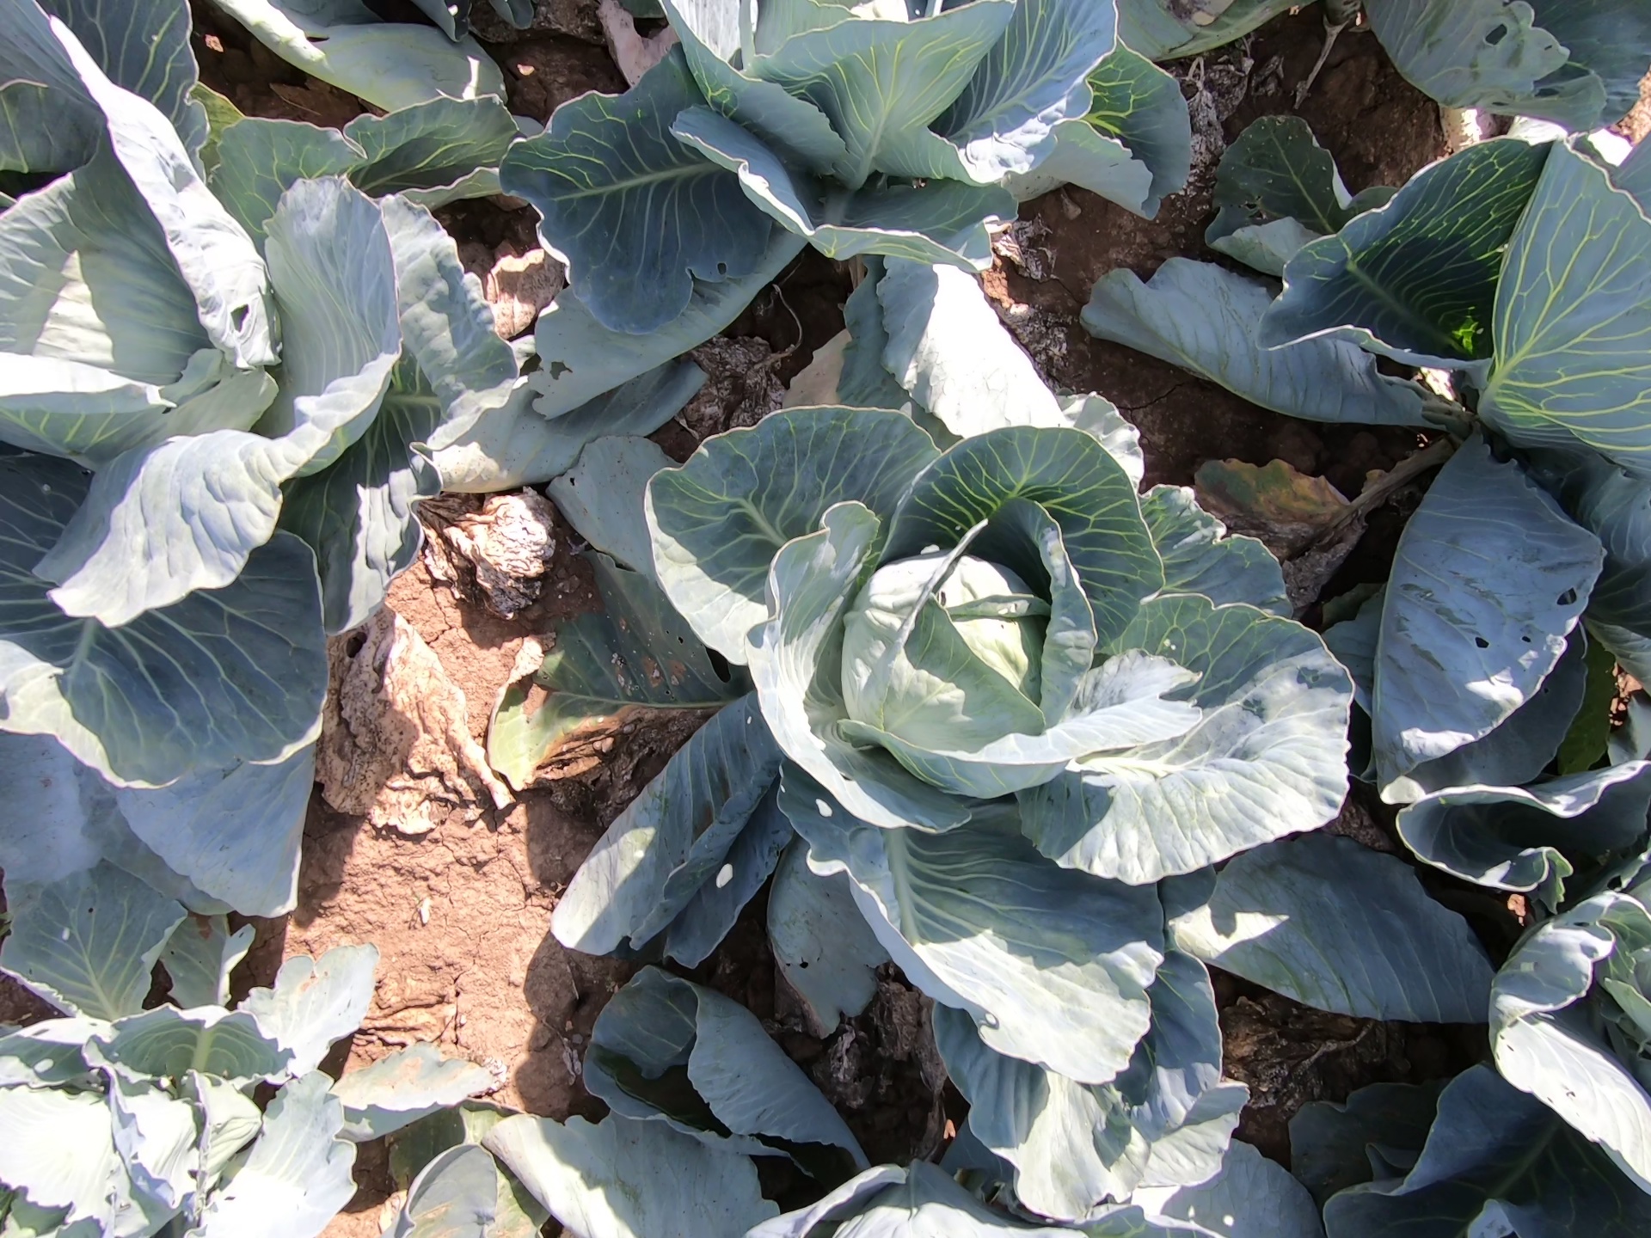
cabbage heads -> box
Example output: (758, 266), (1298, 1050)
(0, 205), (193, 450)
(748, 2), (923, 112)
(850, 550), (1047, 770)
(2, 1110), (167, 1236)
